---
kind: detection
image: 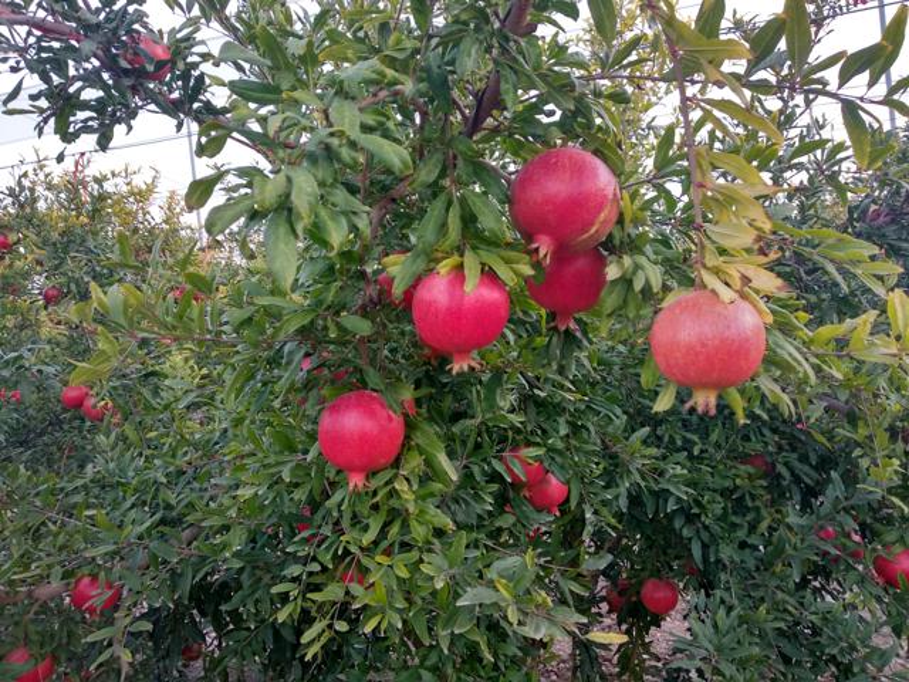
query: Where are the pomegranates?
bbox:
[60,385,94,411]
[70,575,122,612]
[524,246,606,334]
[81,395,108,422]
[501,455,545,487]
[872,550,909,590]
[318,388,406,494]
[125,34,172,81]
[508,146,624,263]
[818,526,865,567]
[43,287,61,304]
[649,288,767,418]
[641,577,679,615]
[740,453,774,473]
[605,580,631,614]
[0,233,11,251]
[0,646,55,682]
[523,472,570,516]
[180,642,203,661]
[410,270,510,375]
[376,271,426,311]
